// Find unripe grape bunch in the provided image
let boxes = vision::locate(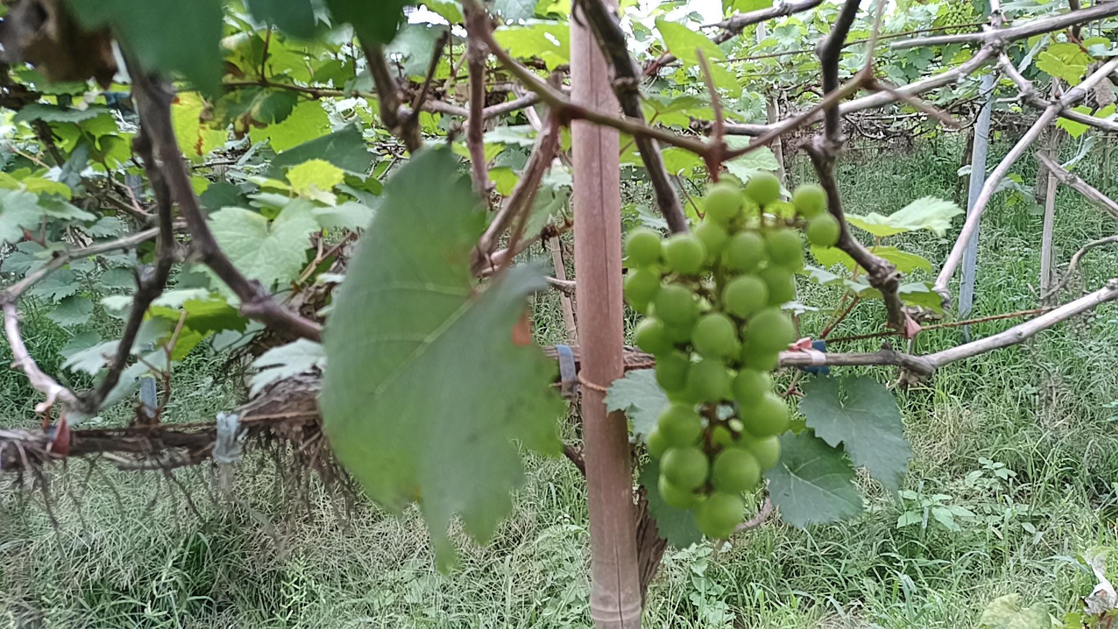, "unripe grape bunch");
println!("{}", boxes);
[625,174,842,538]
